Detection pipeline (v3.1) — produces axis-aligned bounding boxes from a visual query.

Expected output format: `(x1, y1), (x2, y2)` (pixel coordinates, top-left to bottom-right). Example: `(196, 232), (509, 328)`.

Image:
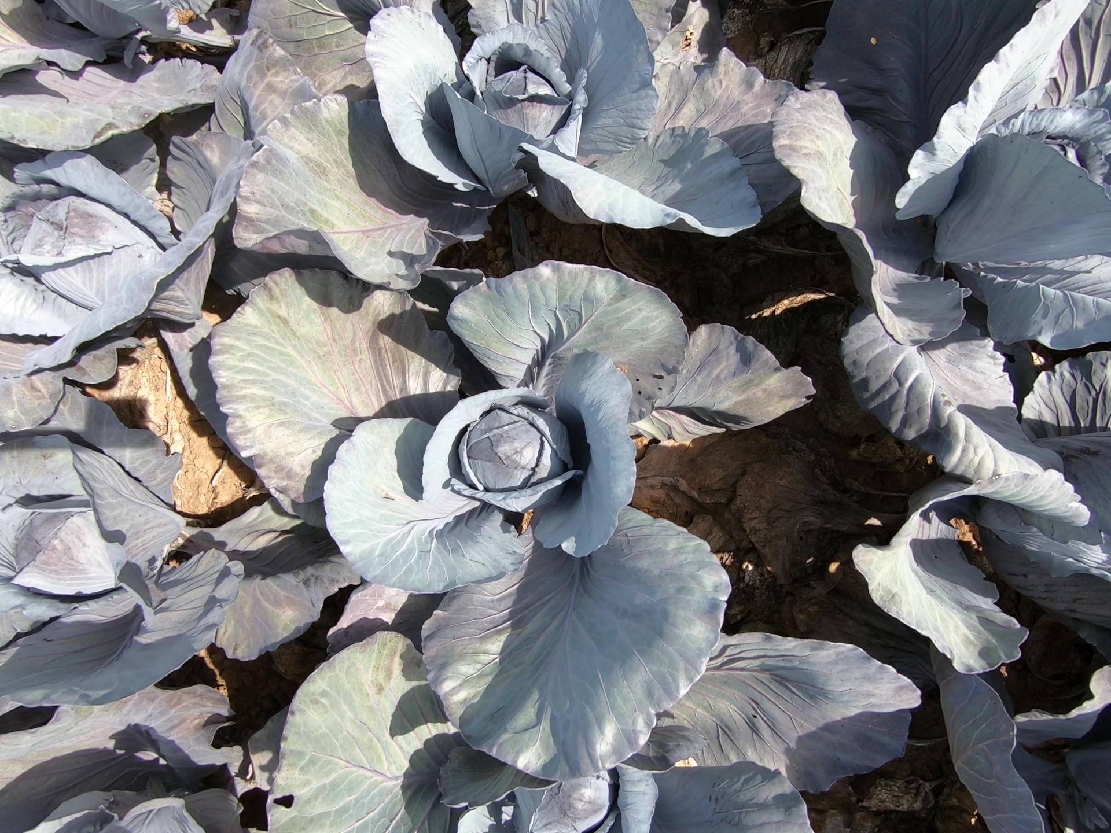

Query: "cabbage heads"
(513, 731), (619, 831)
(485, 67), (563, 148)
(98, 801), (199, 832)
(21, 195), (160, 312)
(988, 138), (1083, 246)
(462, 402), (566, 514)
(980, 459), (1110, 606)
(12, 497), (141, 600)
